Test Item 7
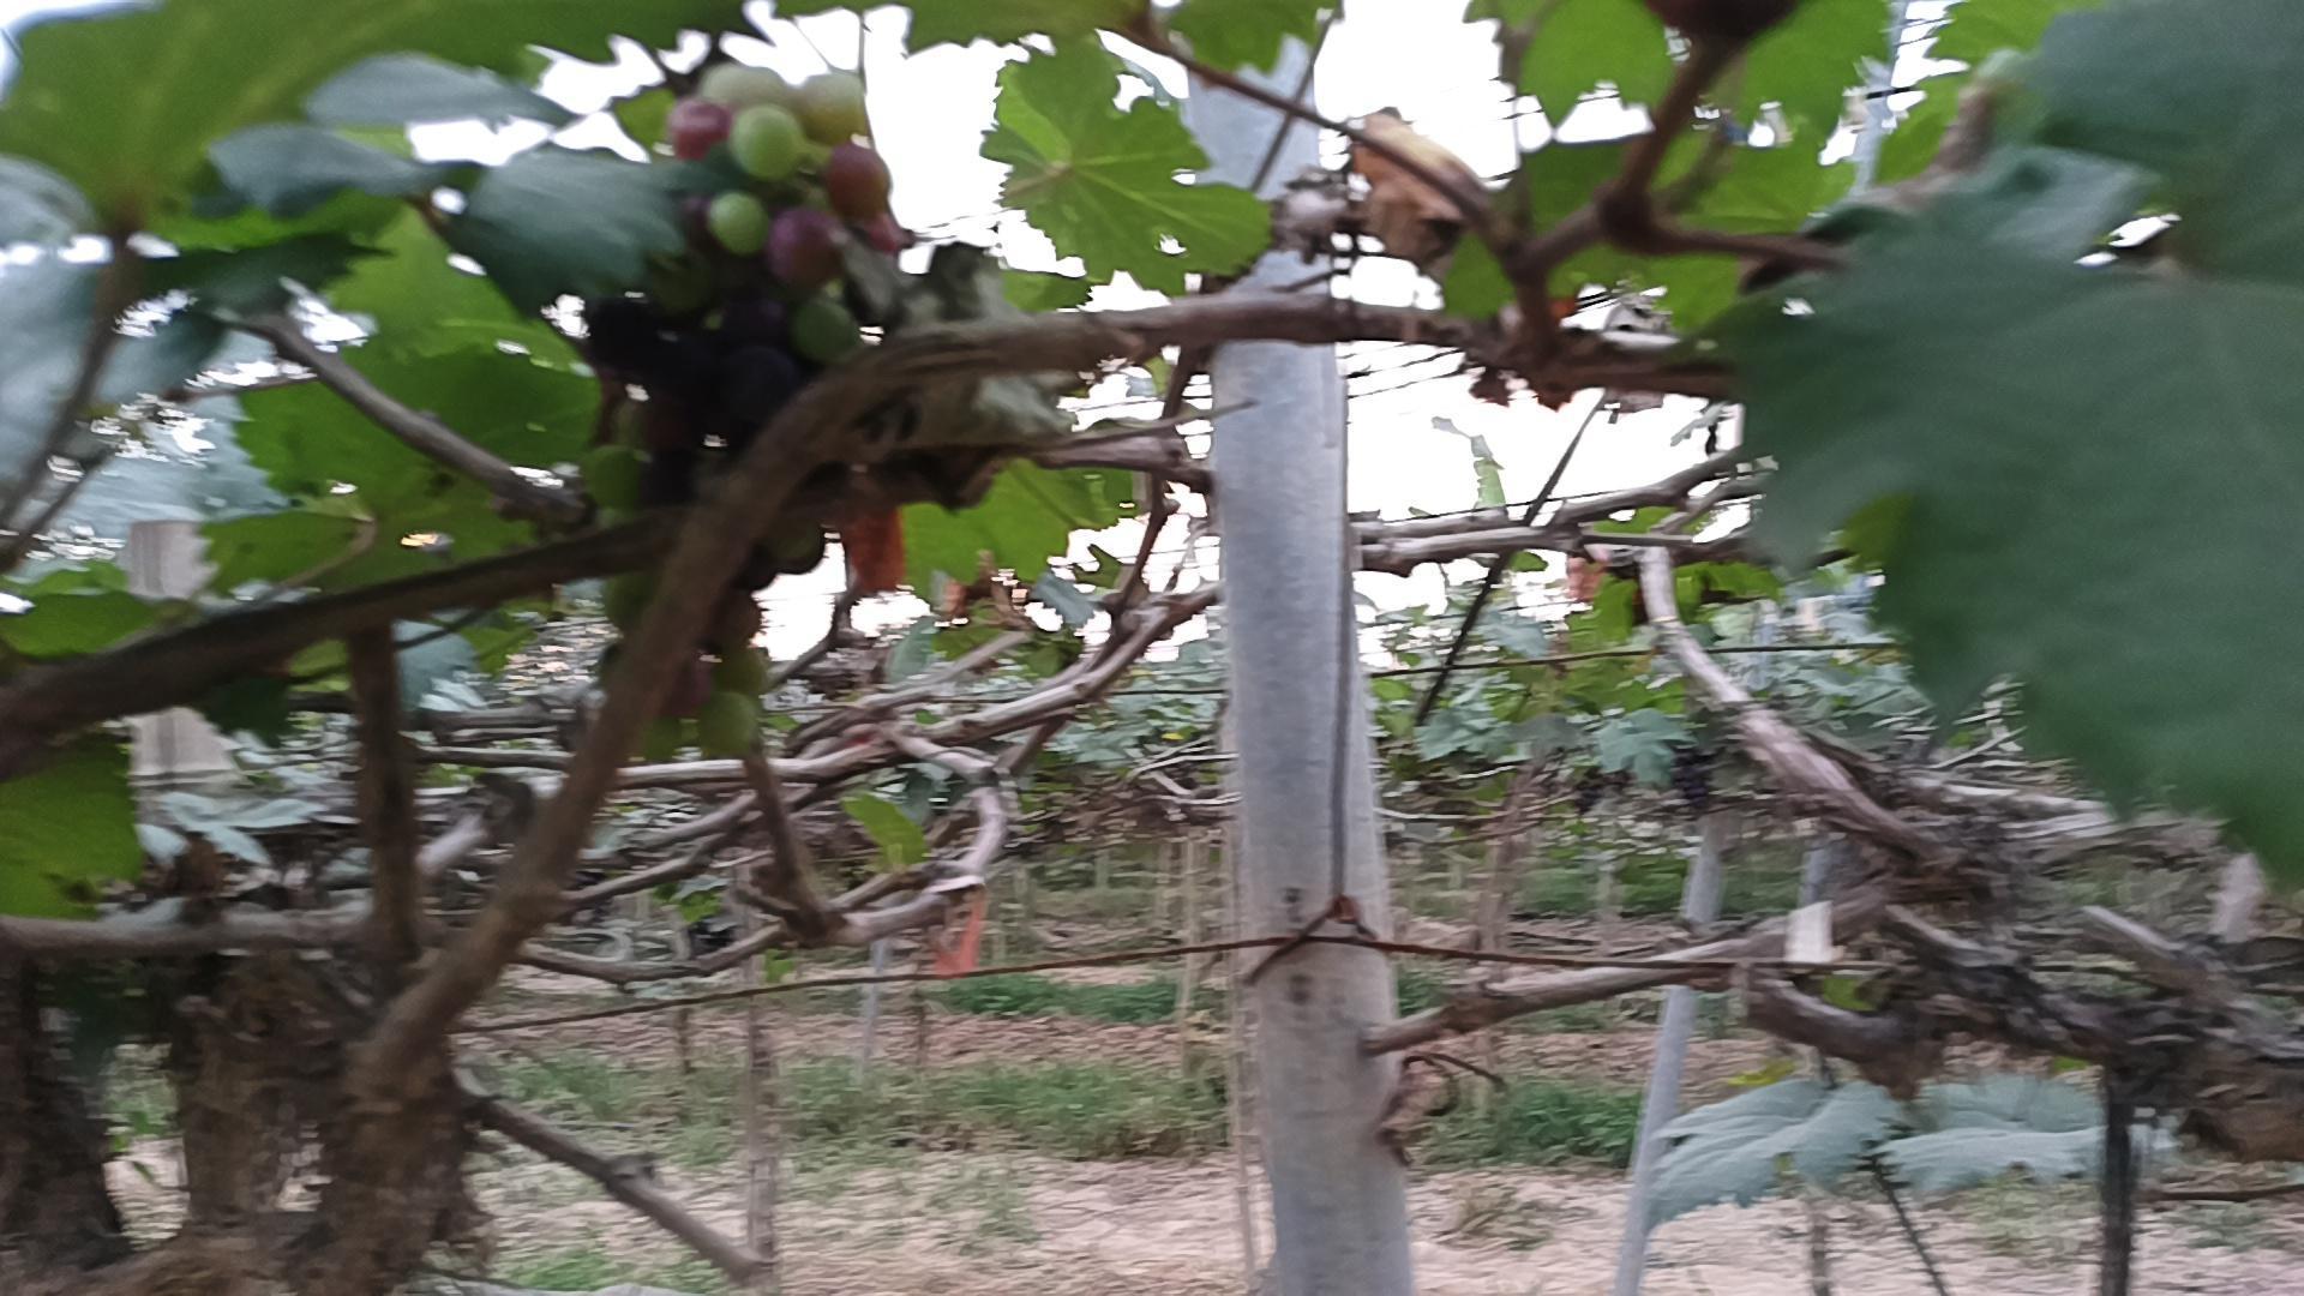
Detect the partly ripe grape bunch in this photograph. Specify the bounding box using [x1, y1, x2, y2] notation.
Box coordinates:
[581, 62, 916, 762]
